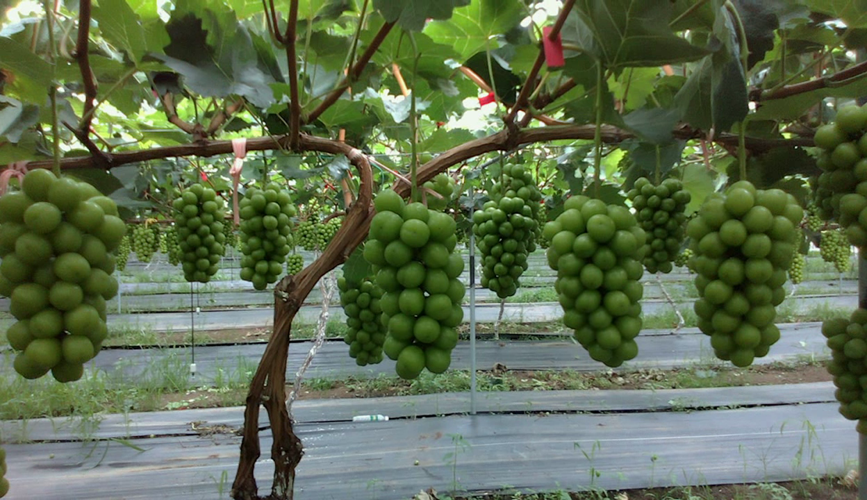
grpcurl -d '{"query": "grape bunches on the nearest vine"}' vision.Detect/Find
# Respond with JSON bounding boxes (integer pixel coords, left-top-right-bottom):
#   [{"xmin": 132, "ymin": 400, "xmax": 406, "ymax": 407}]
[
  {"xmin": 0, "ymin": 168, "xmax": 125, "ymax": 383},
  {"xmin": 543, "ymin": 195, "xmax": 646, "ymax": 368},
  {"xmin": 810, "ymin": 101, "xmax": 866, "ymax": 246},
  {"xmin": 363, "ymin": 188, "xmax": 466, "ymax": 380},
  {"xmin": 686, "ymin": 180, "xmax": 804, "ymax": 367},
  {"xmin": 822, "ymin": 309, "xmax": 863, "ymax": 432}
]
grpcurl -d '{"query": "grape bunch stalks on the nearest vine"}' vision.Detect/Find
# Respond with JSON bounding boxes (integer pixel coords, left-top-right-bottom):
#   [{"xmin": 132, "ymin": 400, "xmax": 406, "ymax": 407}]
[
  {"xmin": 563, "ymin": 43, "xmax": 602, "ymax": 199},
  {"xmin": 406, "ymin": 31, "xmax": 422, "ymax": 202},
  {"xmin": 48, "ymin": 86, "xmax": 62, "ymax": 178},
  {"xmin": 738, "ymin": 122, "xmax": 746, "ymax": 180}
]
